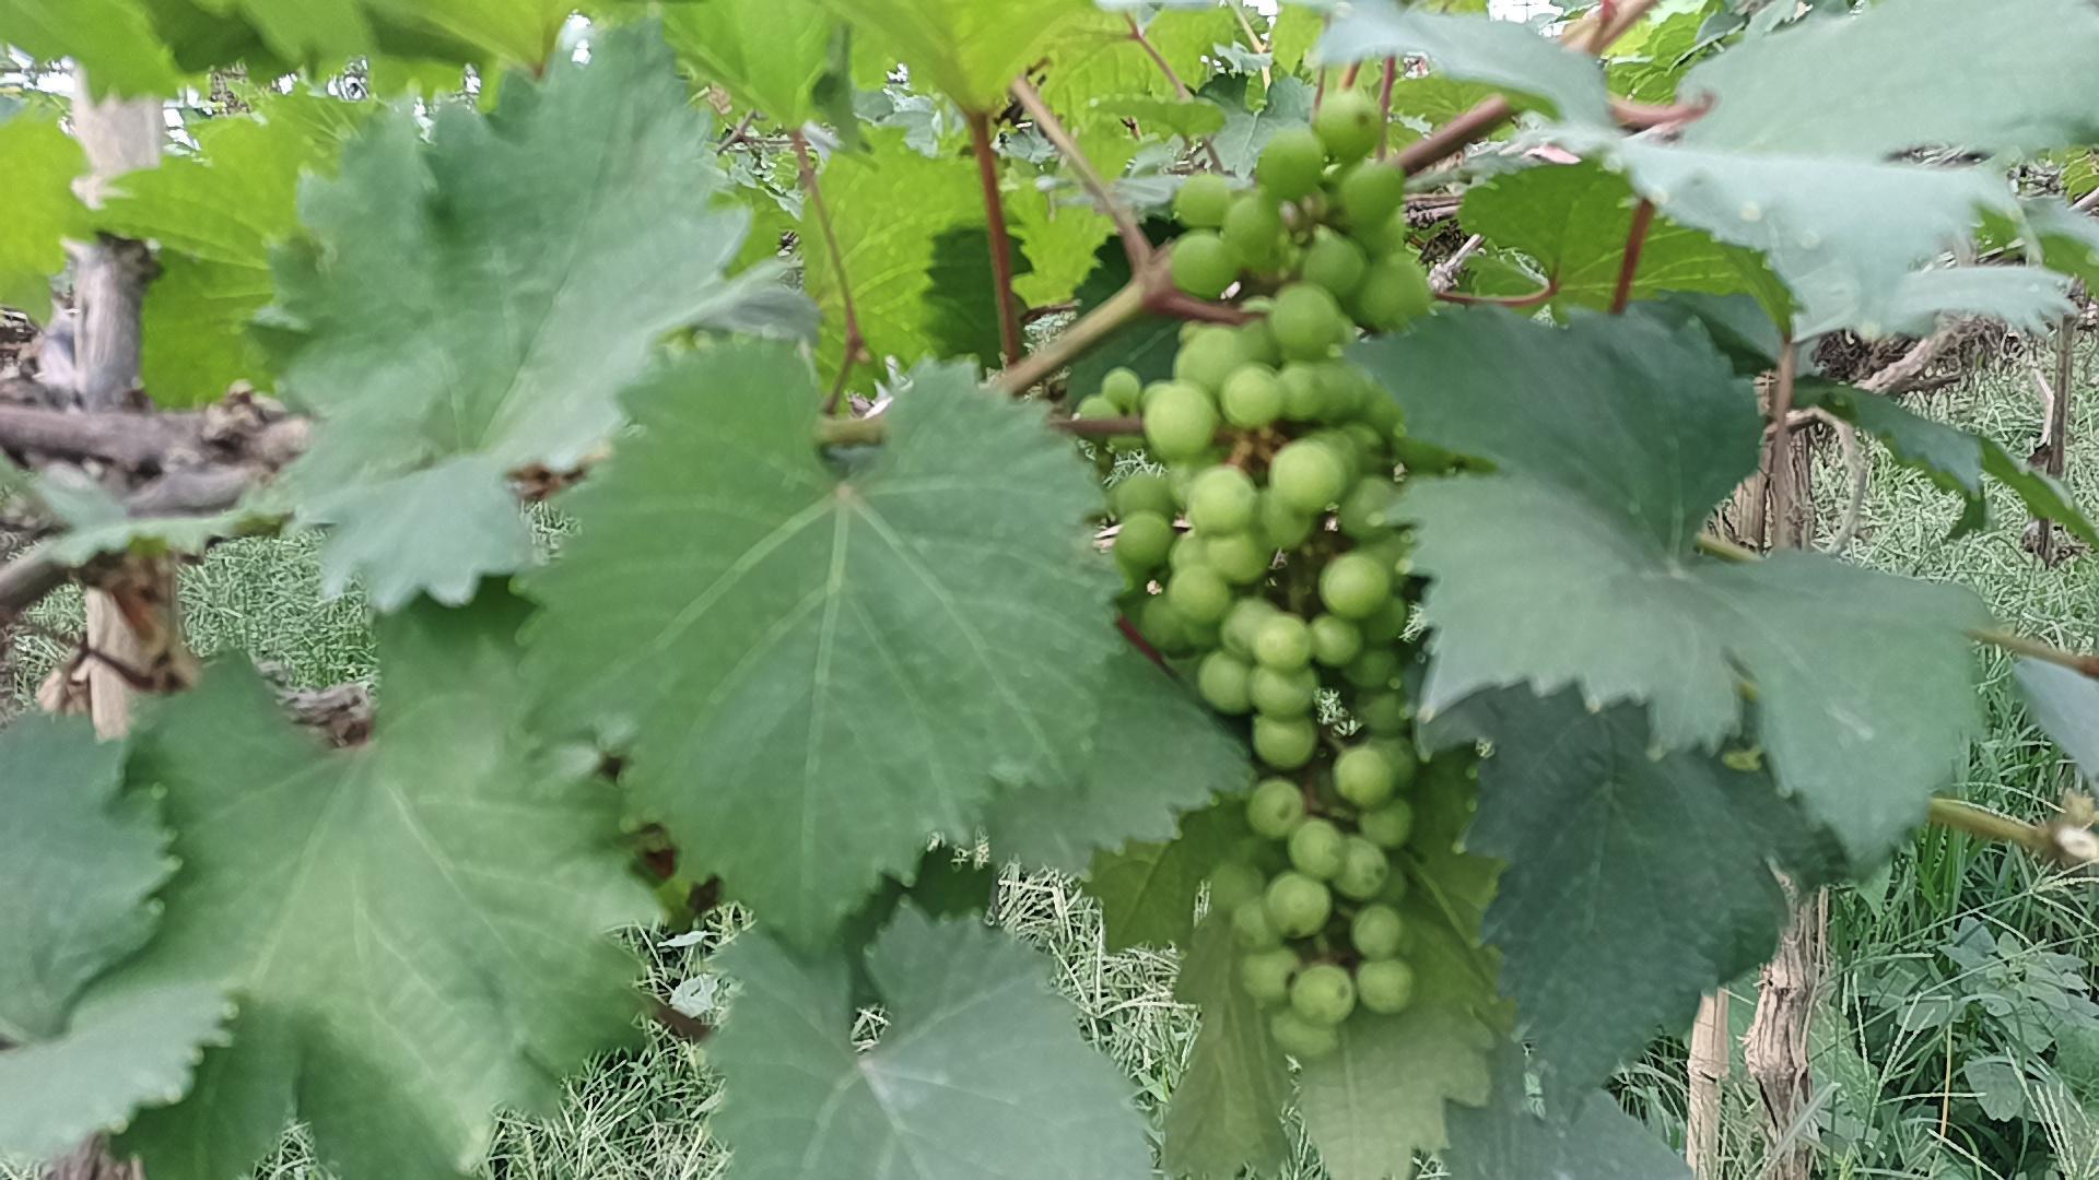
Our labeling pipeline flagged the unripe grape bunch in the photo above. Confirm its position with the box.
[1082,93,1426,1065]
